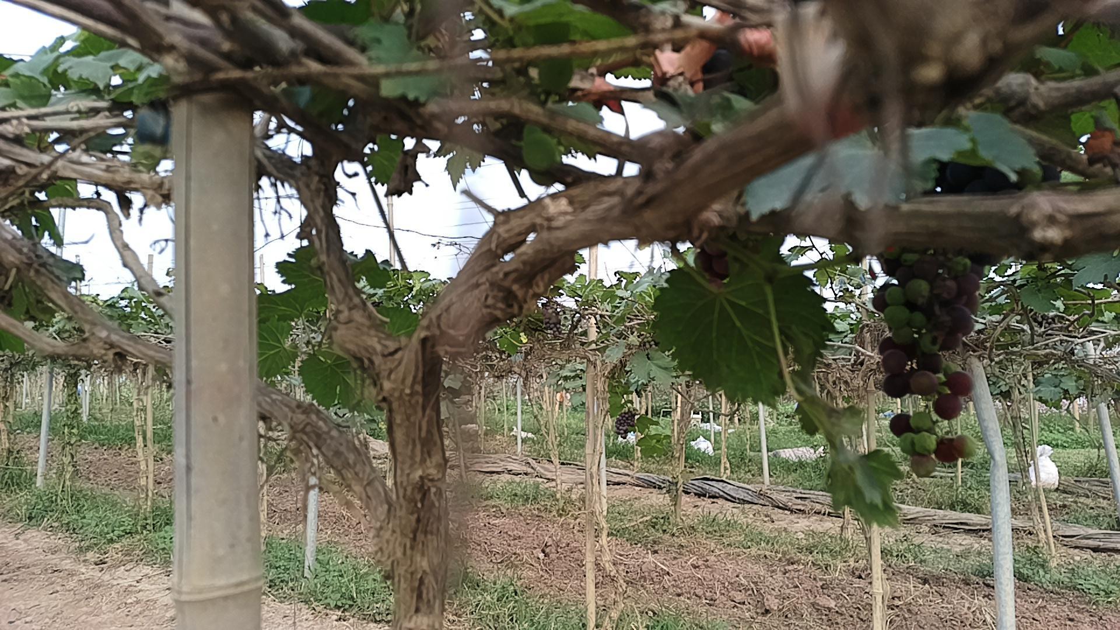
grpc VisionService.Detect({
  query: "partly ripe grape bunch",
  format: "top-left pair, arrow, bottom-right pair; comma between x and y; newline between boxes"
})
873,254 -> 981,477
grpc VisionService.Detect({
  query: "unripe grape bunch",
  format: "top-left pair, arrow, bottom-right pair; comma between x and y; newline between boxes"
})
520,124 -> 572,187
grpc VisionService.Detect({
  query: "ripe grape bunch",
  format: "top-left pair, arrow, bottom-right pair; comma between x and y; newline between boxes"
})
614,409 -> 642,443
